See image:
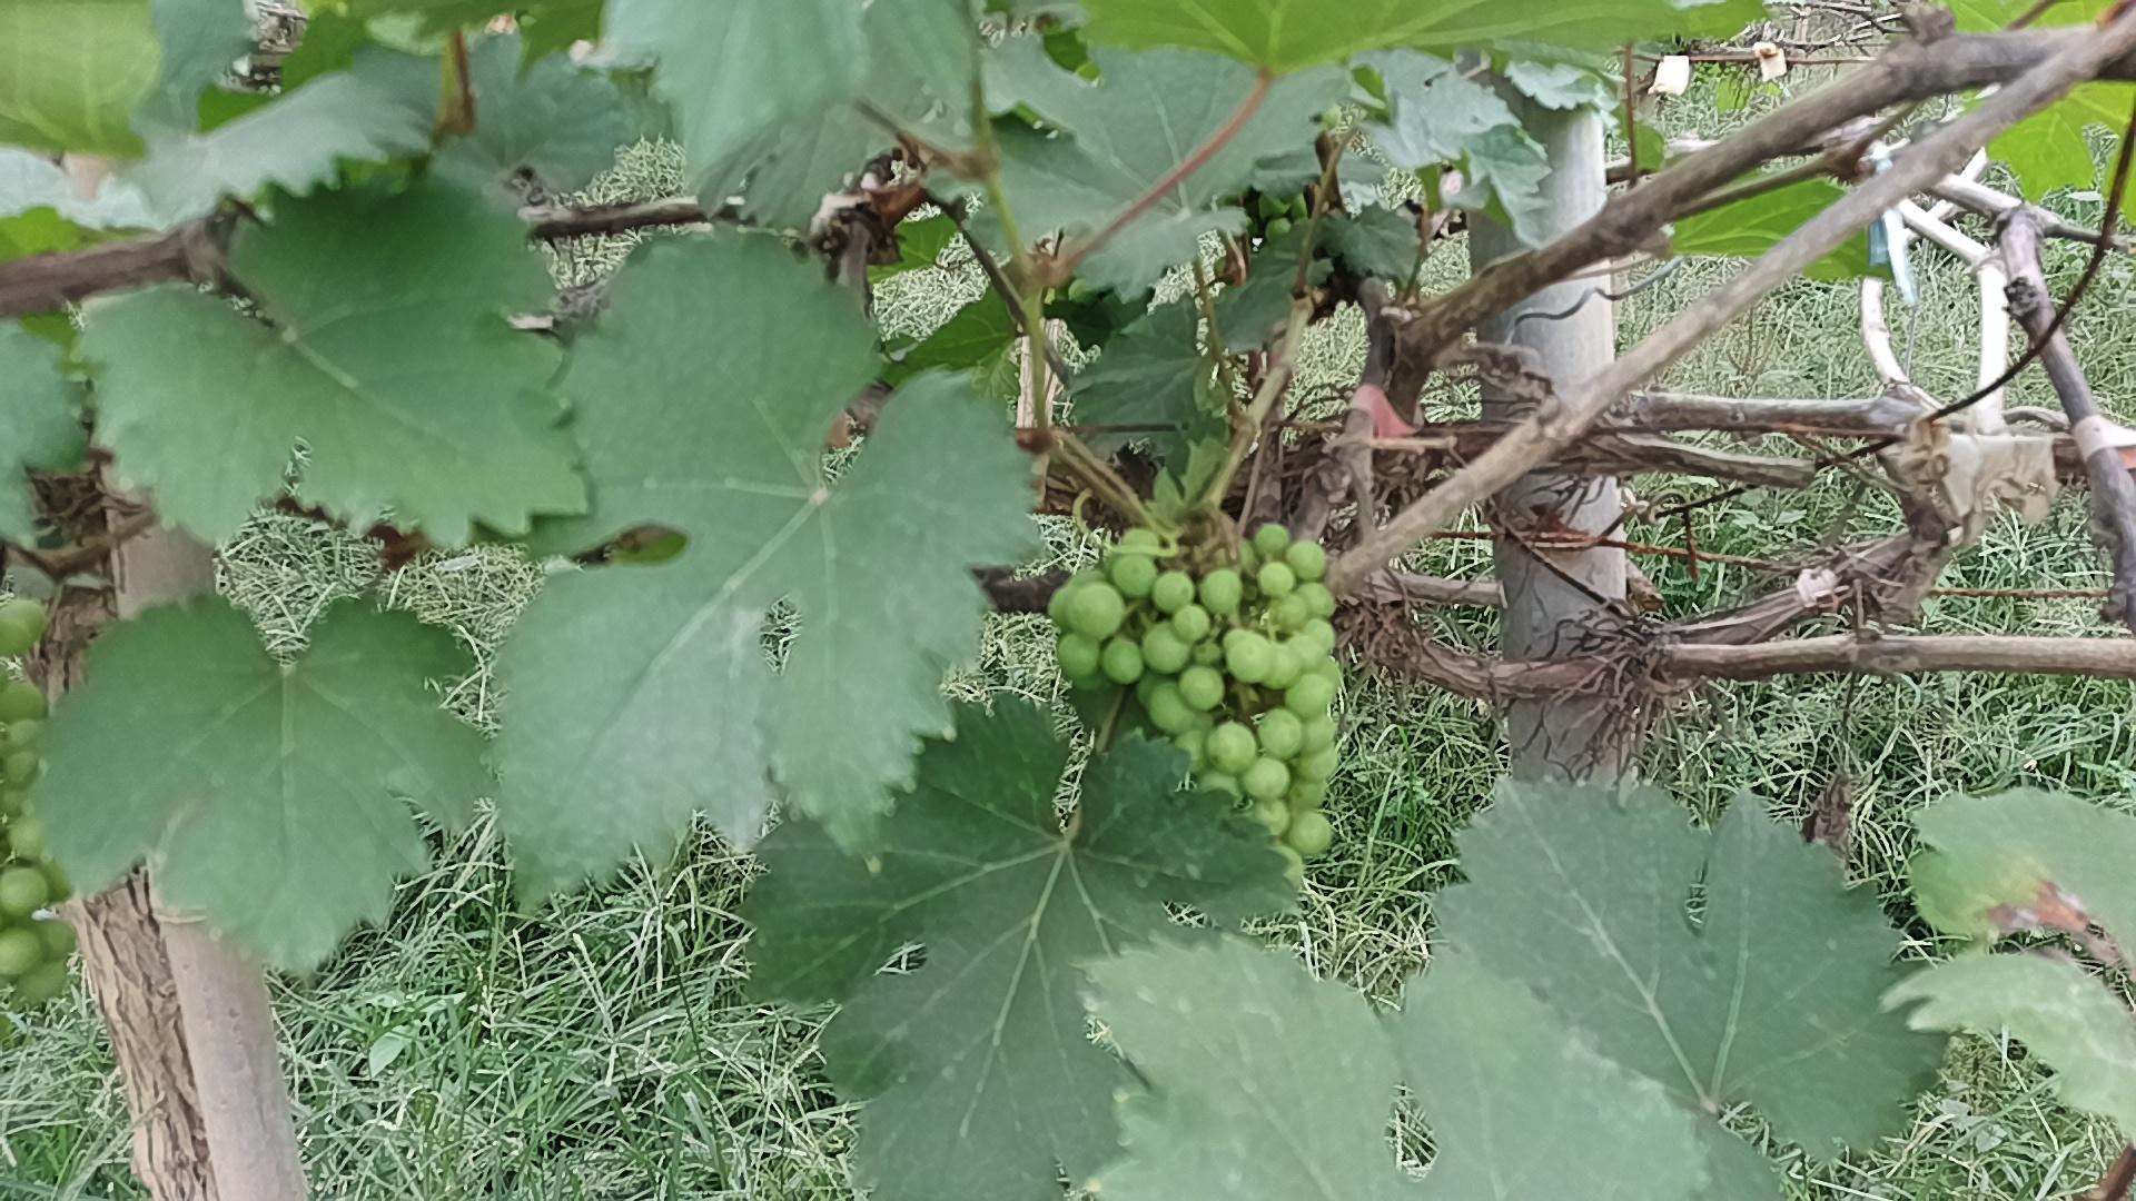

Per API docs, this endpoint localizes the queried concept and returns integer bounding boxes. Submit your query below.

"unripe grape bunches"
[0,599,78,1006]
[1047,524,1341,891]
